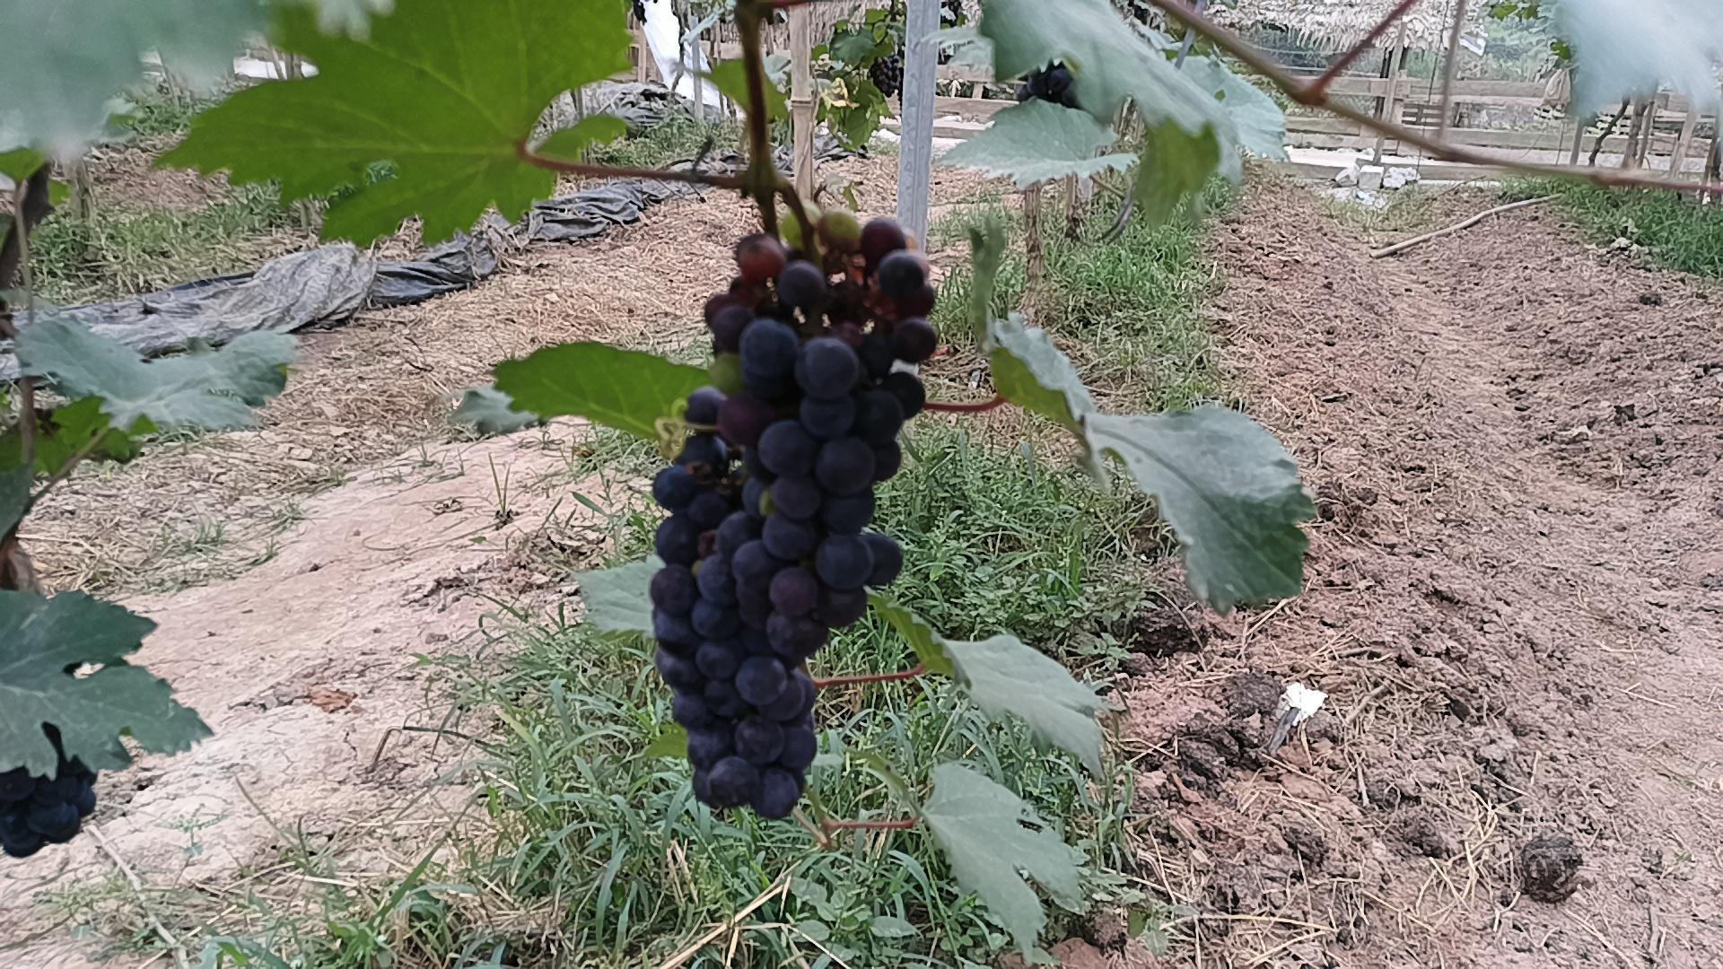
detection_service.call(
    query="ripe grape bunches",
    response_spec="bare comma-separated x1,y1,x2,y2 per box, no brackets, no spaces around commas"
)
869,48,904,100
1018,62,1080,108
0,729,97,860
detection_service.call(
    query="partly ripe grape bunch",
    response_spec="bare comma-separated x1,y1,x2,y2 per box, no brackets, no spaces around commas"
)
647,172,938,816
